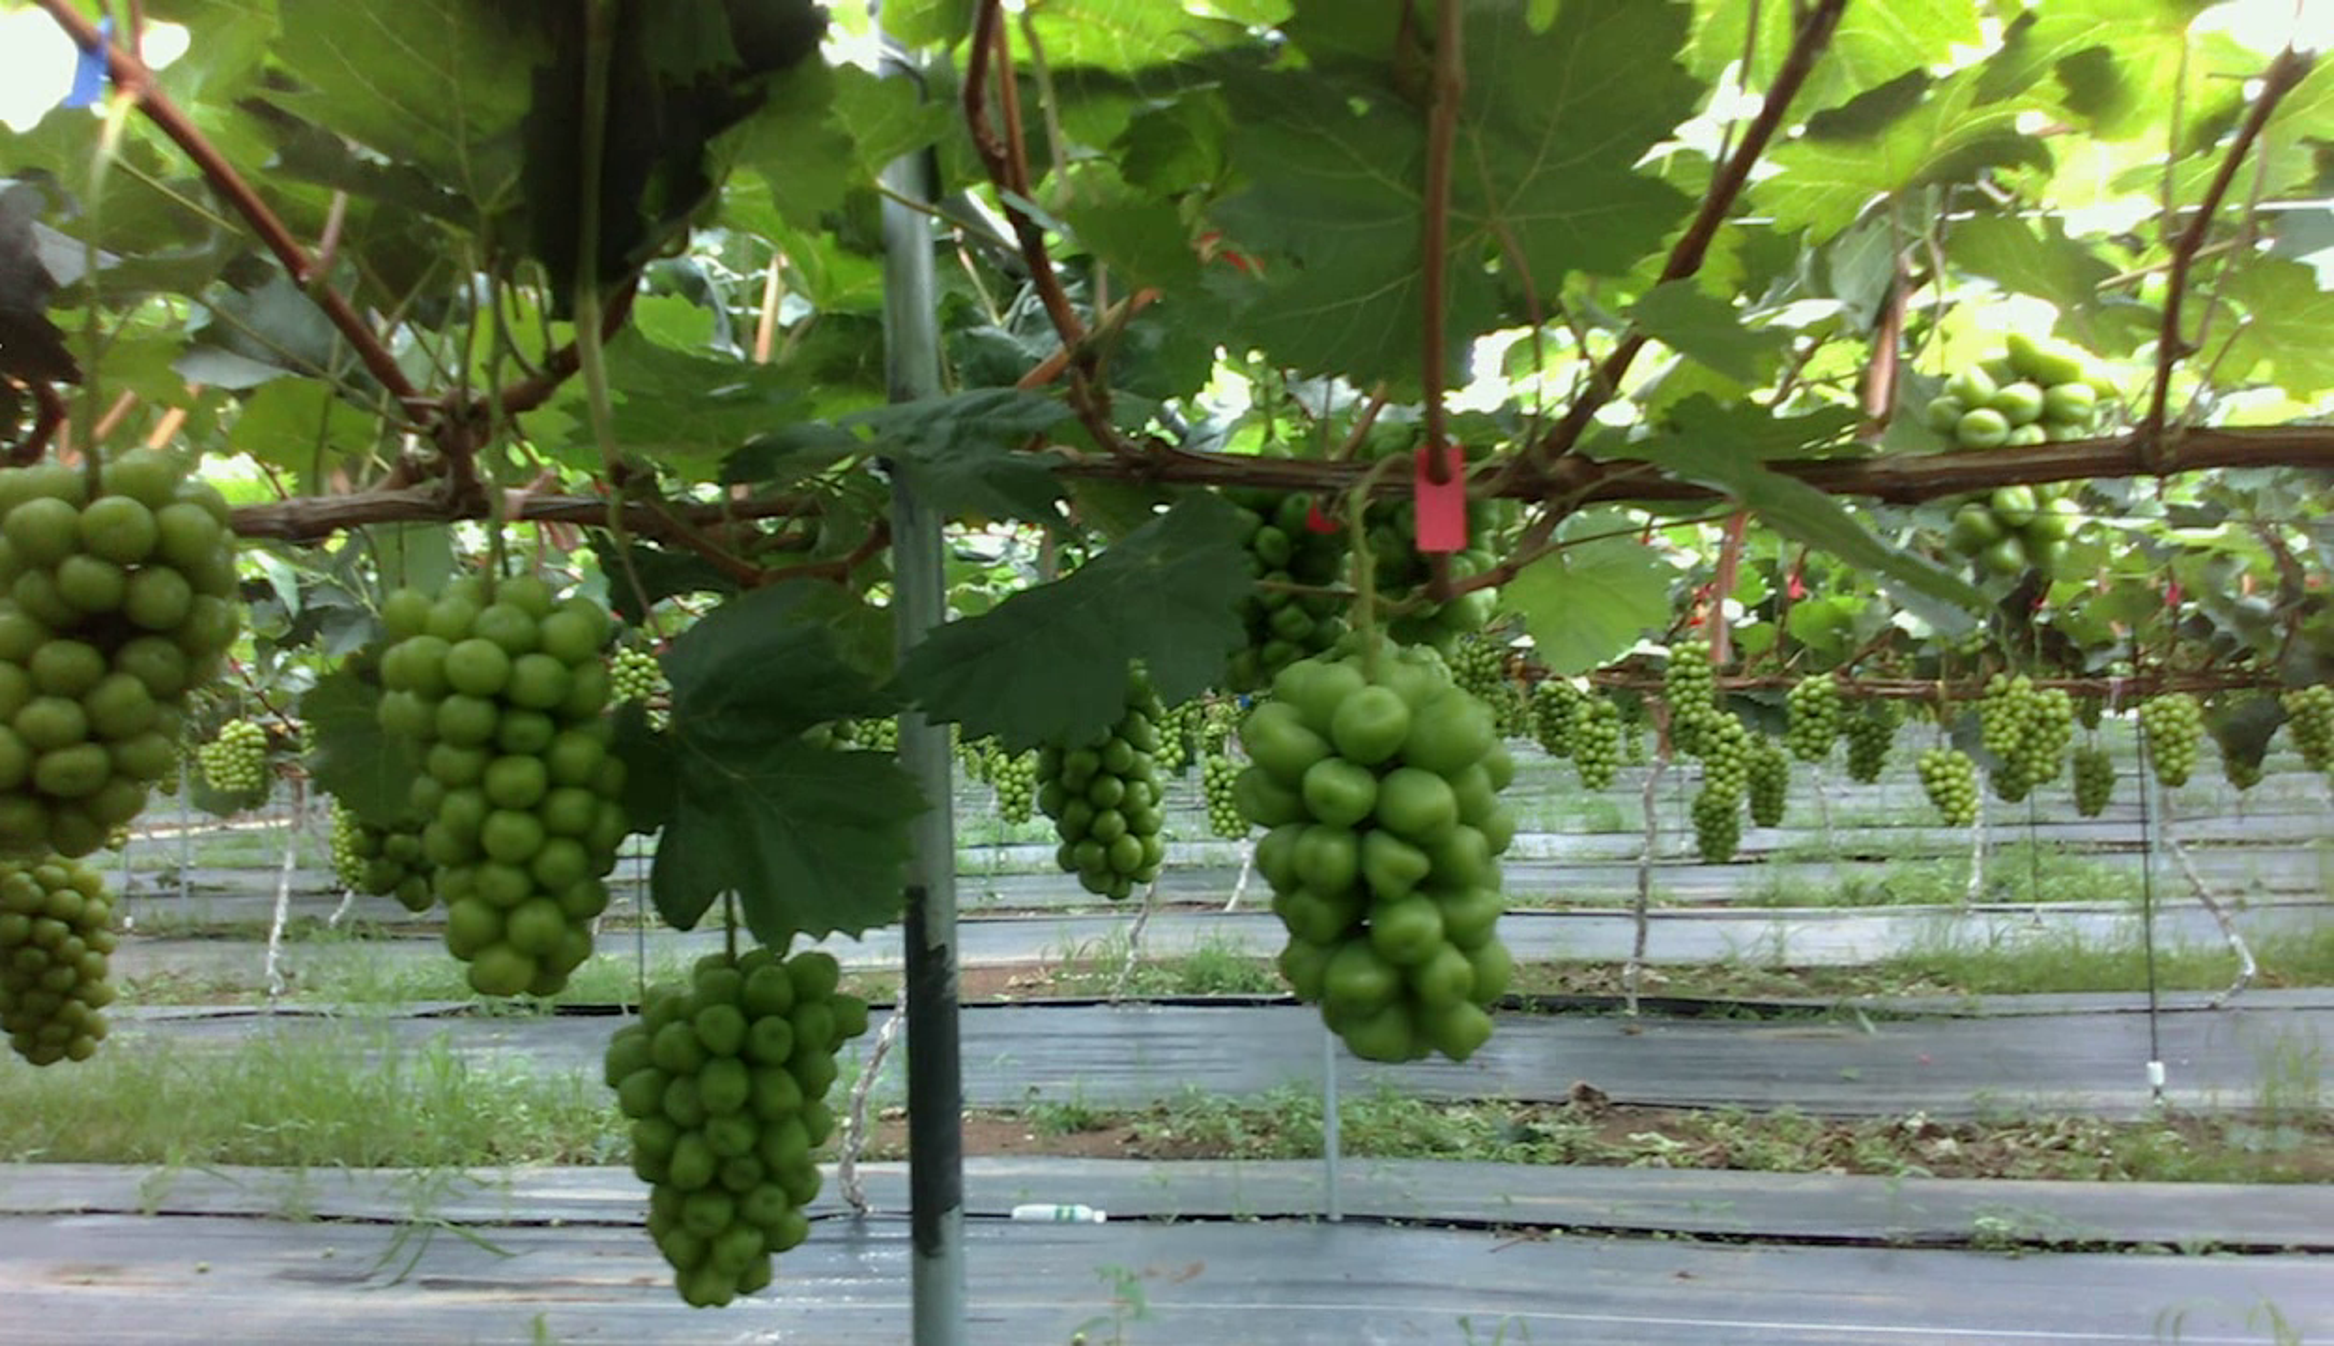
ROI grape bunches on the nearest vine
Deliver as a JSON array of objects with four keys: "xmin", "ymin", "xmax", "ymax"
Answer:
[
  {"xmin": 0, "ymin": 460, "xmax": 241, "ymax": 858},
  {"xmin": 602, "ymin": 948, "xmax": 870, "ymax": 1309},
  {"xmin": 376, "ymin": 576, "xmax": 628, "ymax": 1000},
  {"xmin": 1231, "ymin": 632, "xmax": 1517, "ymax": 1066}
]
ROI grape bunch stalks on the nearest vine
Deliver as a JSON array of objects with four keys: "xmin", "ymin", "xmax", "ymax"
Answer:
[
  {"xmin": 477, "ymin": 256, "xmax": 512, "ymax": 604},
  {"xmin": 1347, "ymin": 452, "xmax": 1414, "ymax": 684},
  {"xmin": 724, "ymin": 881, "xmax": 737, "ymax": 967},
  {"xmin": 77, "ymin": 90, "xmax": 138, "ymax": 501}
]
